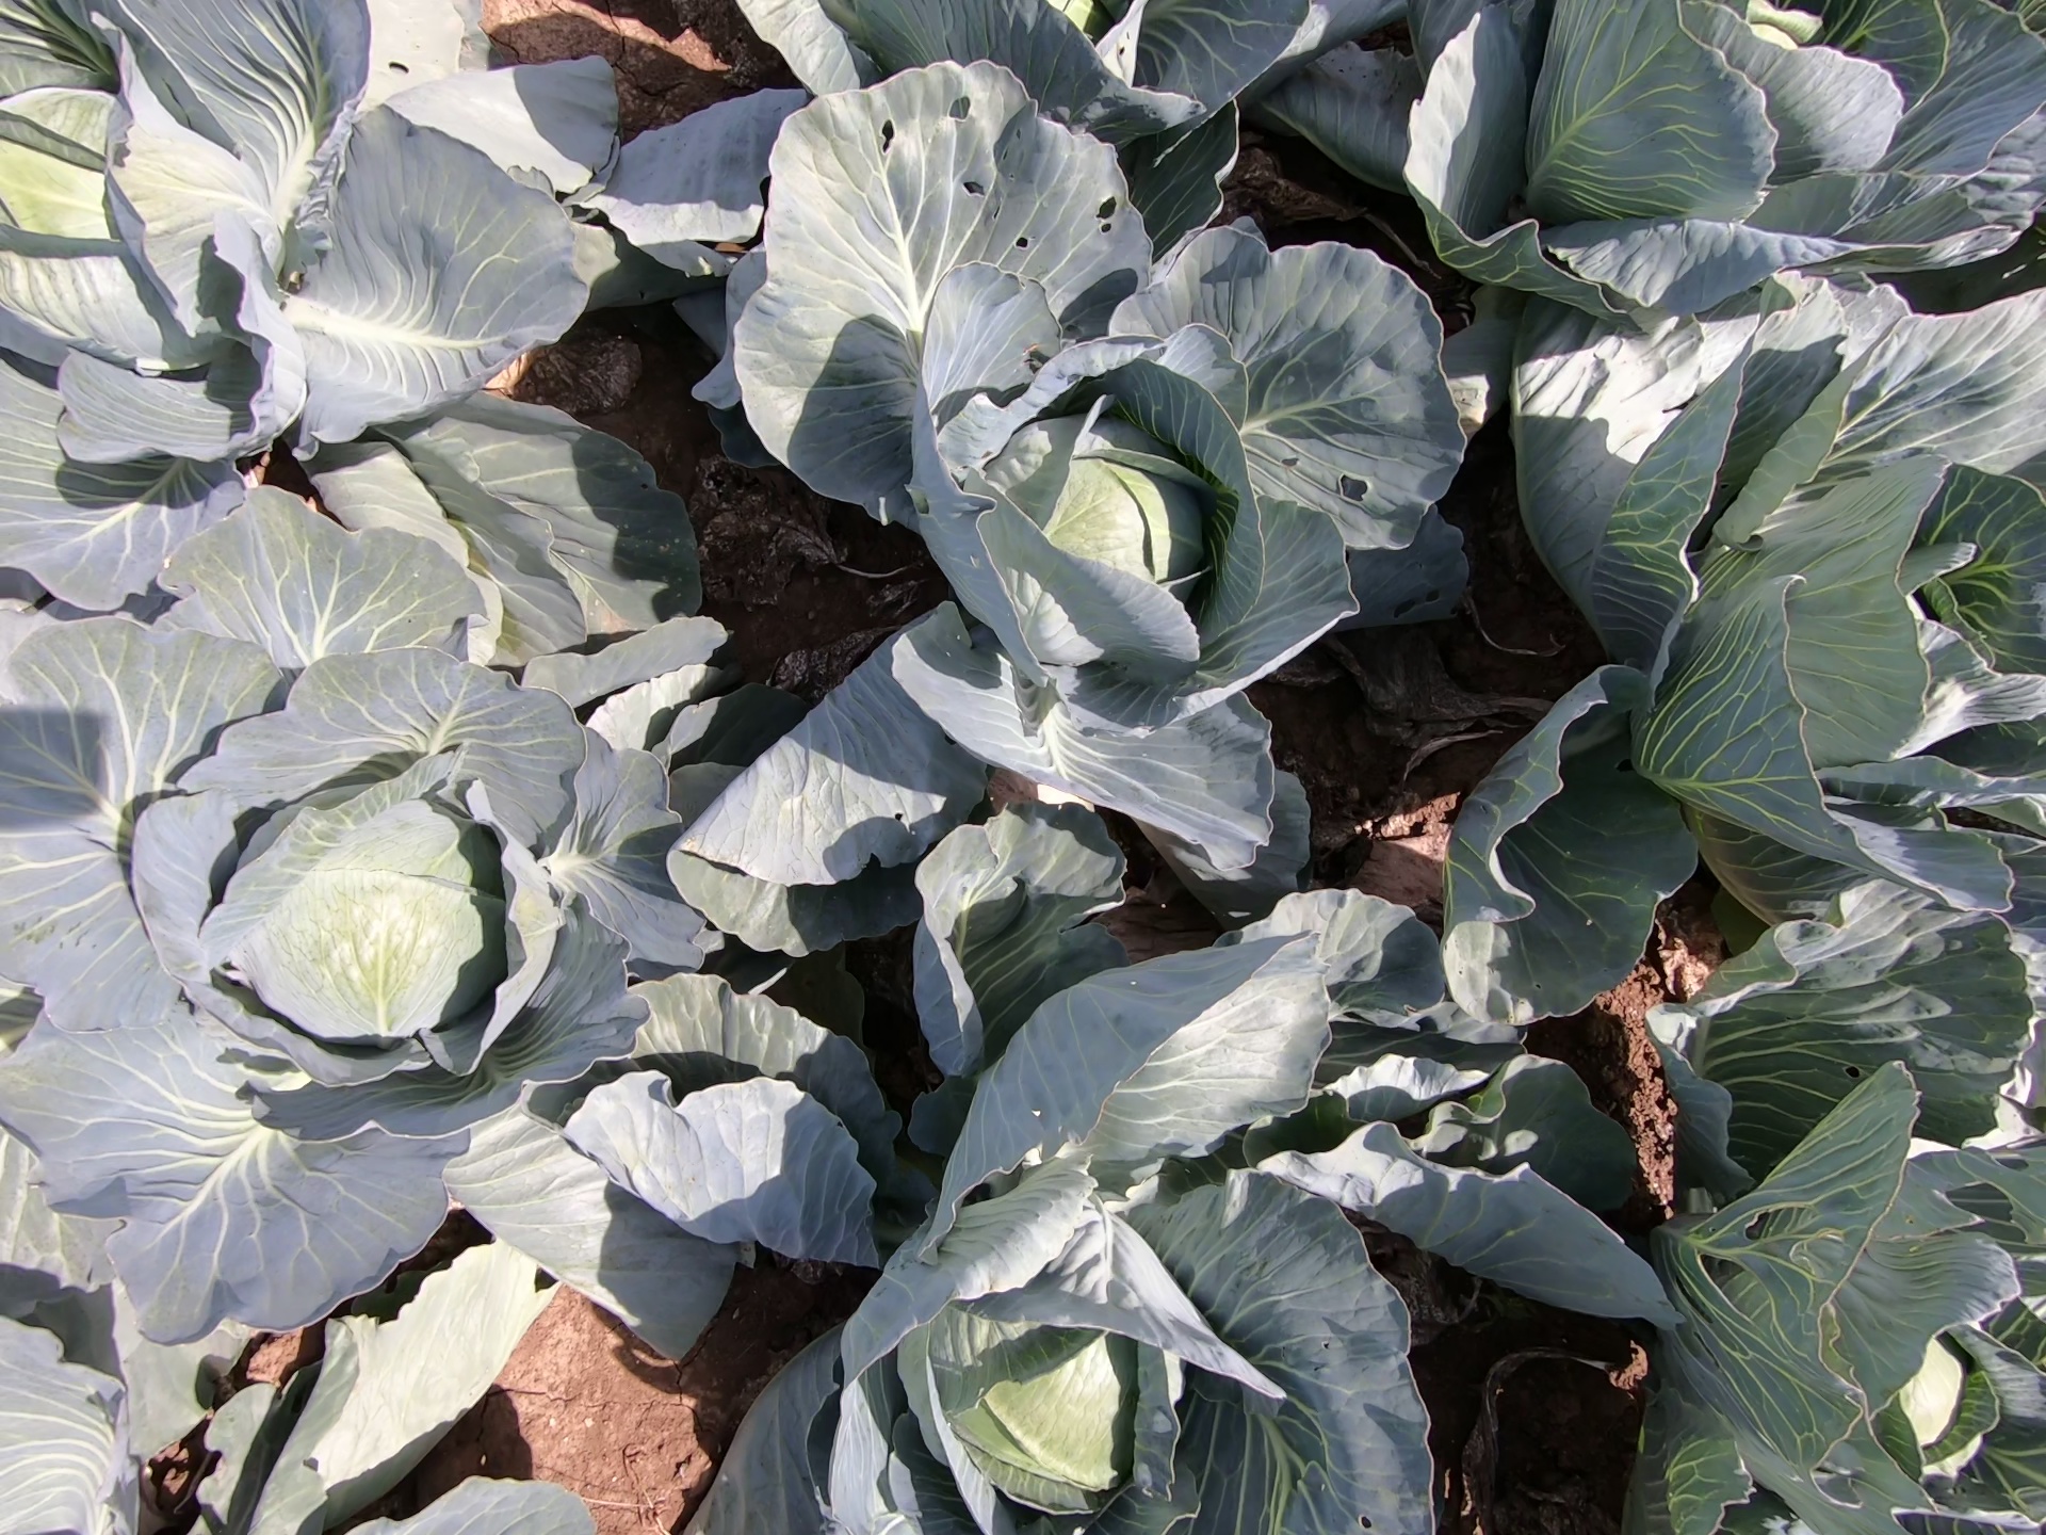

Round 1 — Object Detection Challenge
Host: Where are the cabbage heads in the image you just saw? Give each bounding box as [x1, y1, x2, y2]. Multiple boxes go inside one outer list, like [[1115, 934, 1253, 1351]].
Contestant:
[[1768, 565, 1937, 752], [903, 1209, 1190, 1494], [0, 79, 277, 382], [229, 780, 523, 1048], [1781, 1283, 1996, 1477], [929, 3, 1126, 117], [952, 419, 1205, 660], [1628, 12, 1812, 201]]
